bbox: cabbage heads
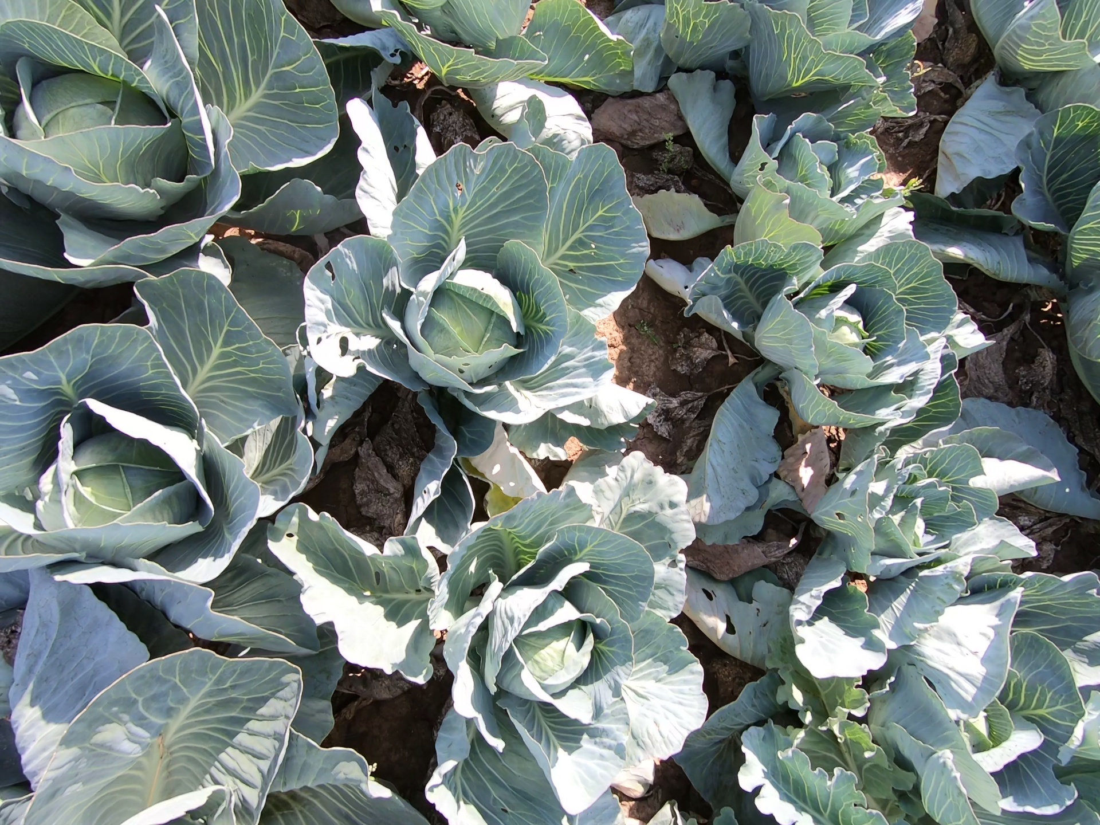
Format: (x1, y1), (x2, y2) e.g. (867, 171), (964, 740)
(496, 591), (591, 693)
(42, 431), (195, 540)
(789, 296), (866, 357)
(920, 698), (993, 763)
(25, 73), (171, 199)
(865, 494), (928, 552)
(415, 272), (520, 374)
